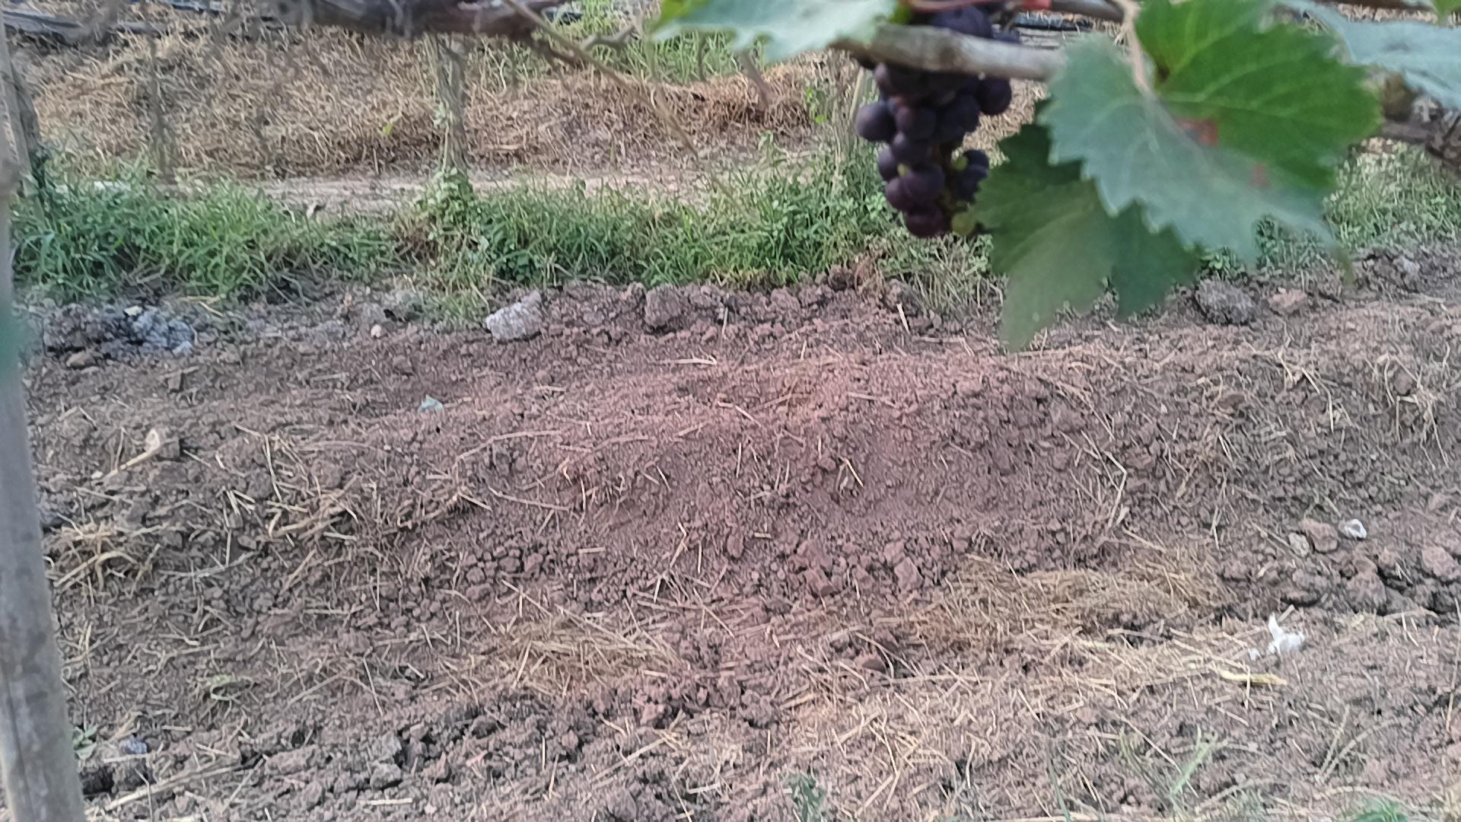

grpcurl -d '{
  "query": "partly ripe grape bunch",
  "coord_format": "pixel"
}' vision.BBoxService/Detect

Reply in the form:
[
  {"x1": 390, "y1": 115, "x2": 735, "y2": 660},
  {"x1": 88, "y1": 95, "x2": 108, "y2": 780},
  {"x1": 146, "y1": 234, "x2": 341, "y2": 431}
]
[{"x1": 855, "y1": 0, "x2": 1021, "y2": 237}]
